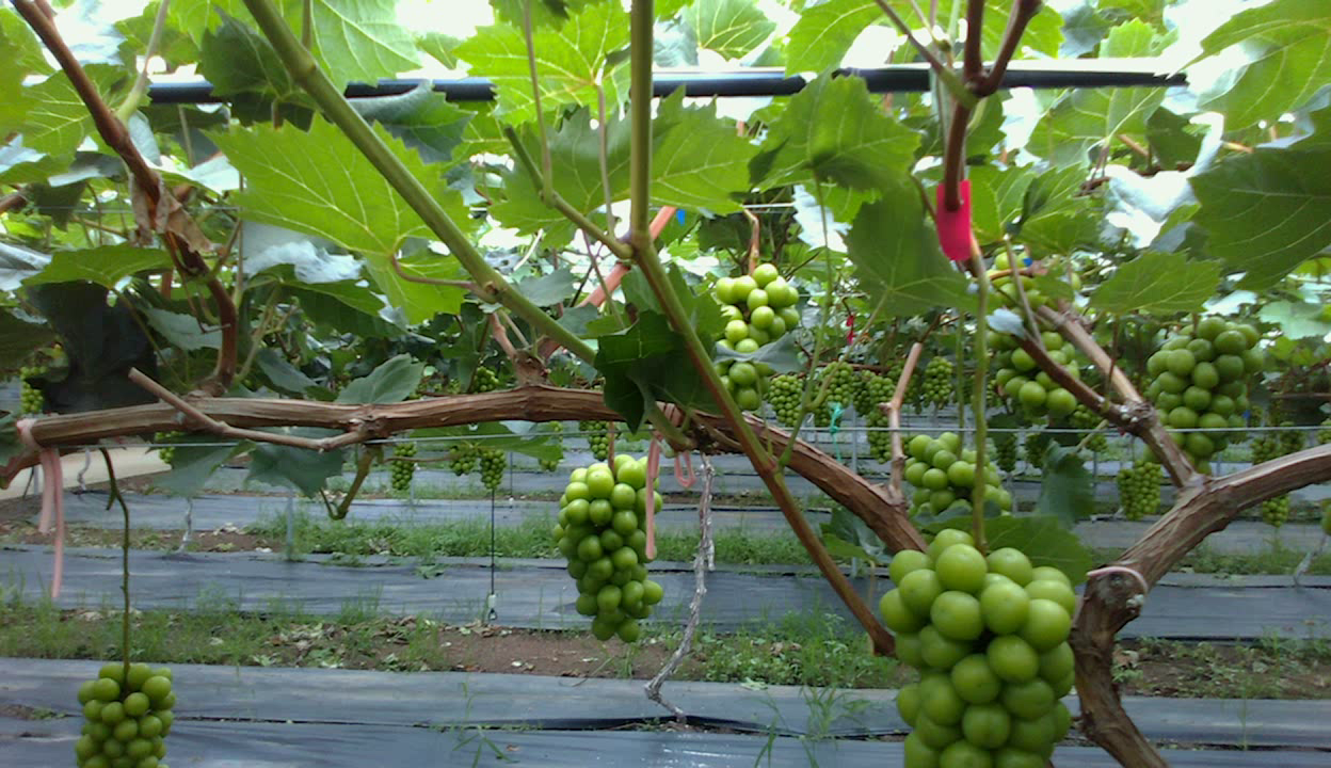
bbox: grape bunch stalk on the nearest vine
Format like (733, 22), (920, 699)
(969, 234), (990, 557)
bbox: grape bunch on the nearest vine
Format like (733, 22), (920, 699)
(880, 528), (1077, 766)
